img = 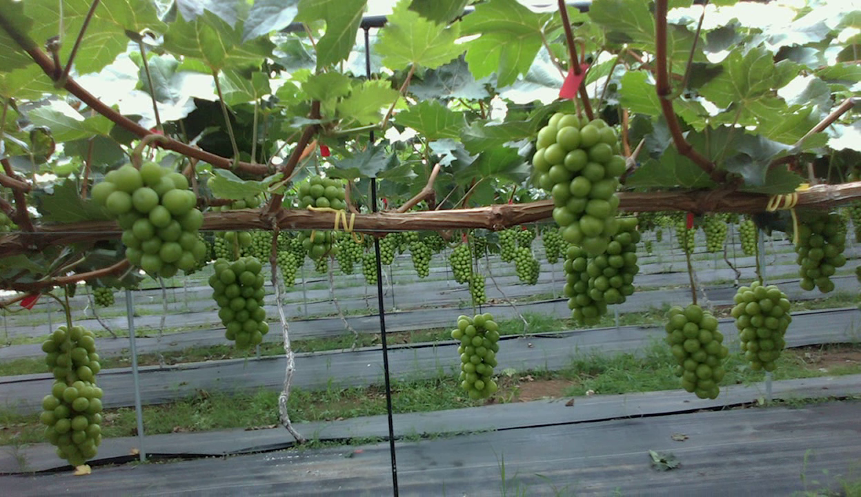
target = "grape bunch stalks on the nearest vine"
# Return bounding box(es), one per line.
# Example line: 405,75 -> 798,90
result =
573,95 -> 582,118
133,135 -> 166,168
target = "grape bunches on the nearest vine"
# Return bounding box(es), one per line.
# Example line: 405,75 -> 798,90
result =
92,162 -> 208,279
531,112 -> 628,255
